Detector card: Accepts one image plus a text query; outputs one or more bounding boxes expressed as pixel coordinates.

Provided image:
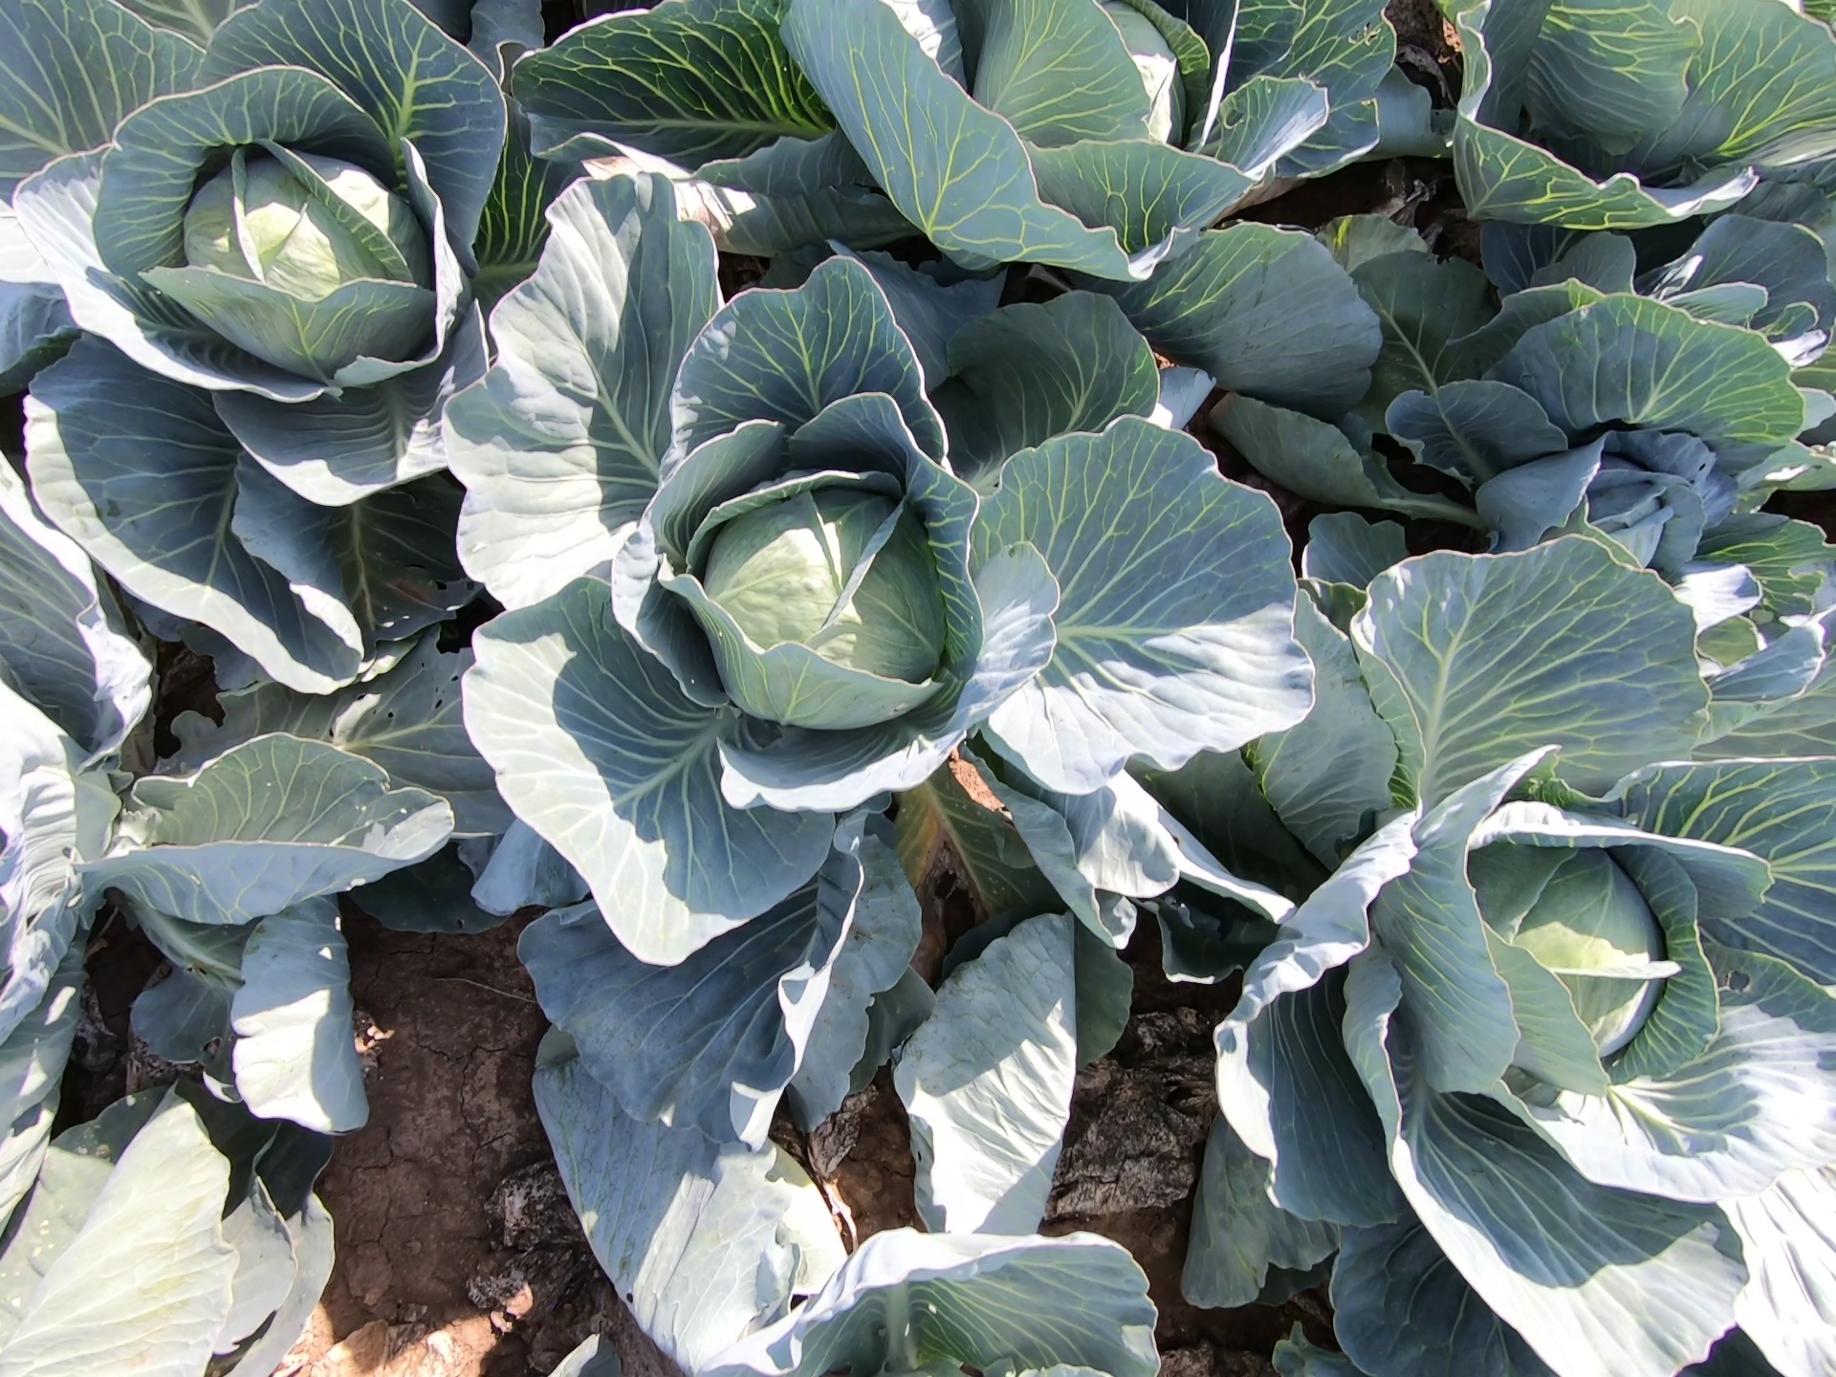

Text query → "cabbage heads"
[176,148,431,361]
[1567,471,1666,577]
[1442,830,1669,1061]
[1003,0,1189,201]
[703,474,952,719]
